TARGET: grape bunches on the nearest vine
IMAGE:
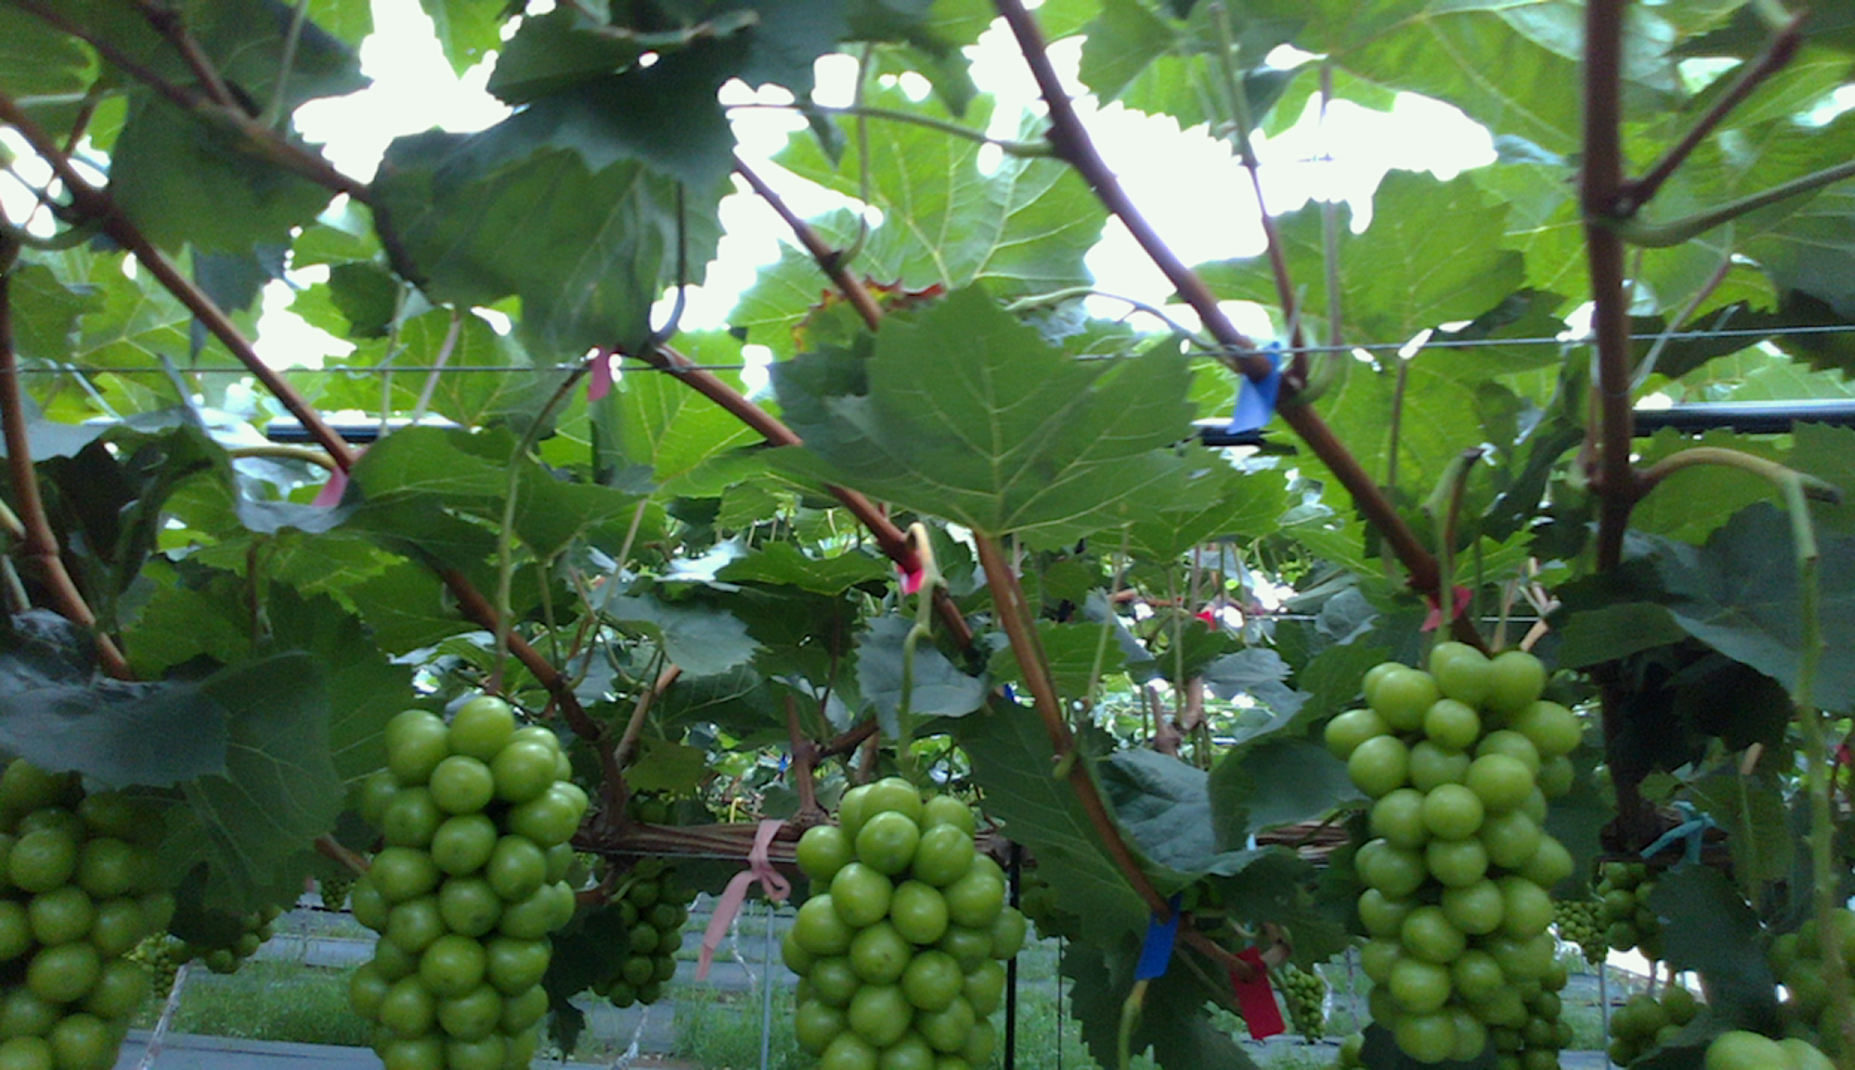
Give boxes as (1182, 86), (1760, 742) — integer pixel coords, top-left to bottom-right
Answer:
(780, 777), (1027, 1069)
(1770, 908), (1854, 1057)
(1, 758), (177, 1069)
(349, 694), (587, 1067)
(1324, 643), (1582, 1064)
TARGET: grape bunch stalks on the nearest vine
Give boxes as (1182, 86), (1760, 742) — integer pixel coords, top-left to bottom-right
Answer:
(896, 523), (933, 785)
(486, 367), (587, 694)
(1430, 450), (1467, 646)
